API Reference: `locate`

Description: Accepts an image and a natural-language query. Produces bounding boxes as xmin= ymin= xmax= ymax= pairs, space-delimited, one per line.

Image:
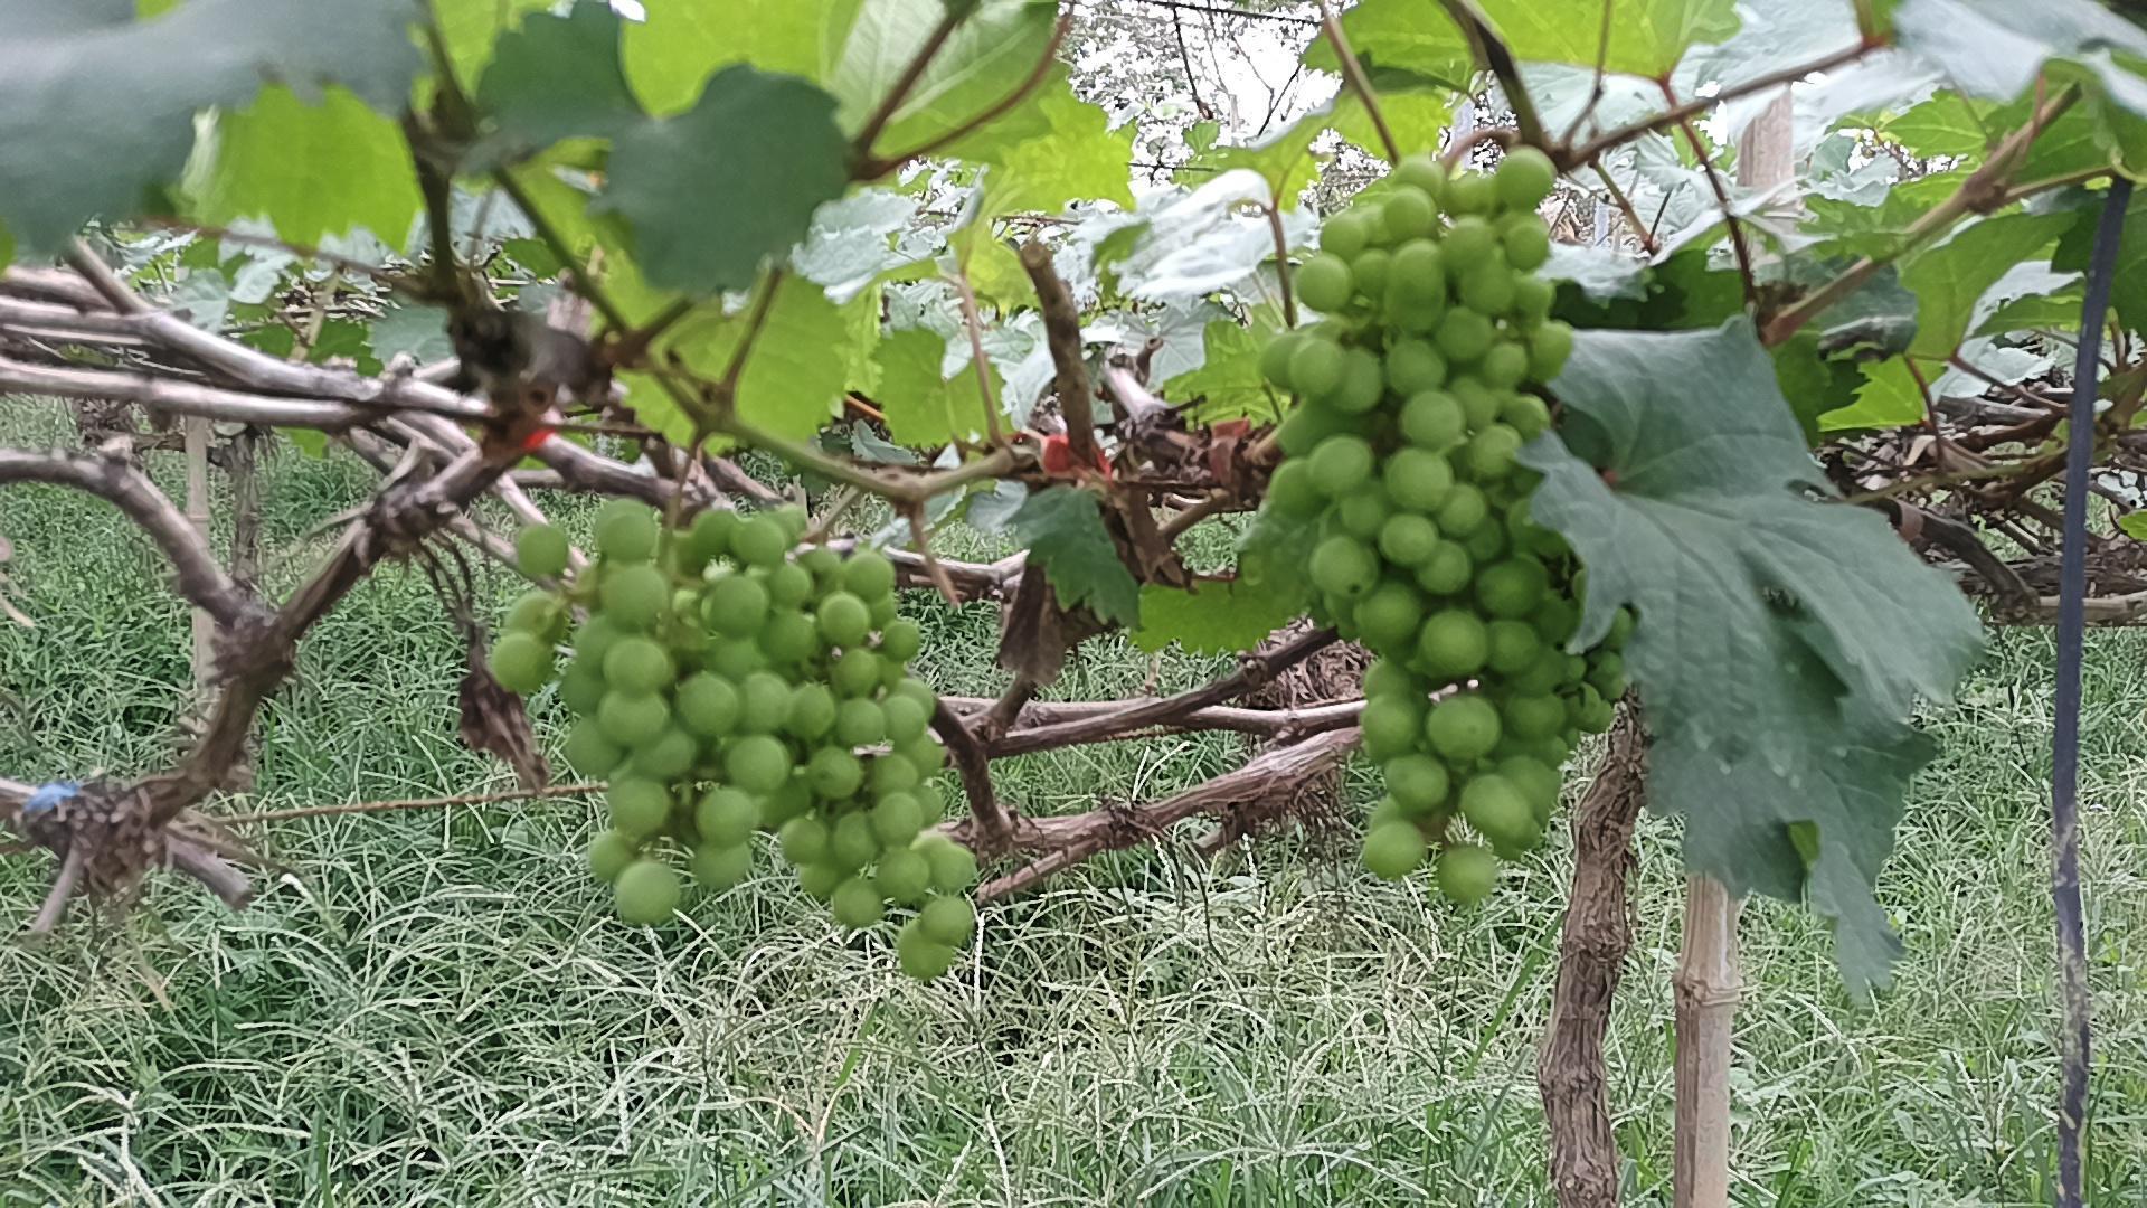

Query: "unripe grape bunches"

xmin=765 ymin=547 xmax=974 ymax=976
xmin=1361 ymin=611 xmax=1633 ymax=903
xmin=1262 ymin=150 xmax=1572 ymax=688
xmin=490 ymin=500 xmax=819 ymax=924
